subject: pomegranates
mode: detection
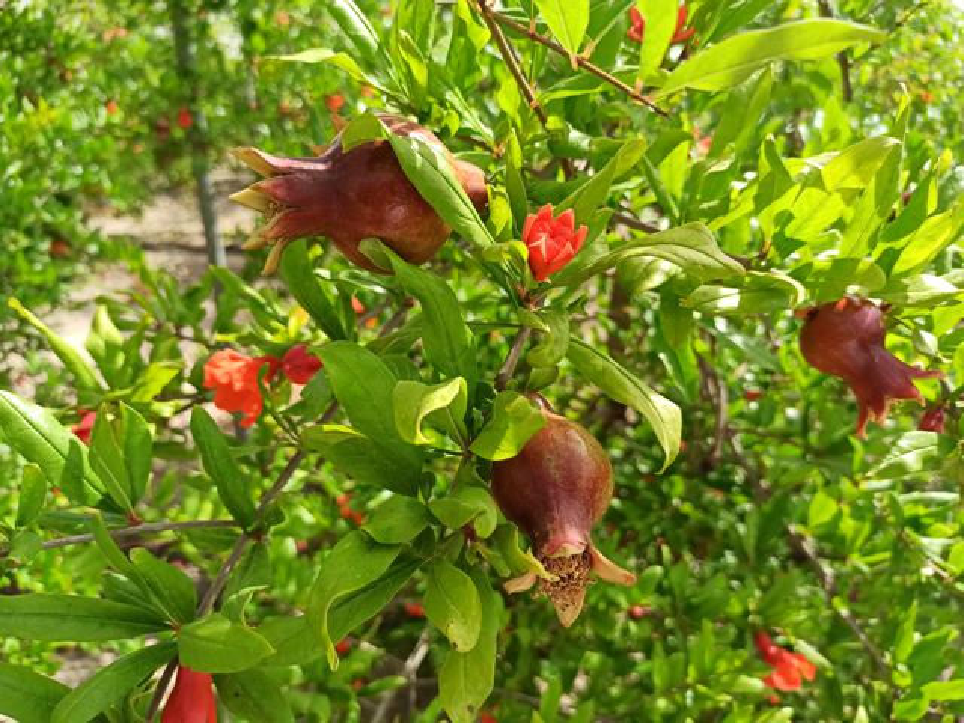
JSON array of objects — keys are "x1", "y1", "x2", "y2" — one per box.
[
  {"x1": 224, "y1": 111, "x2": 488, "y2": 274},
  {"x1": 794, "y1": 295, "x2": 944, "y2": 435},
  {"x1": 490, "y1": 390, "x2": 636, "y2": 627}
]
